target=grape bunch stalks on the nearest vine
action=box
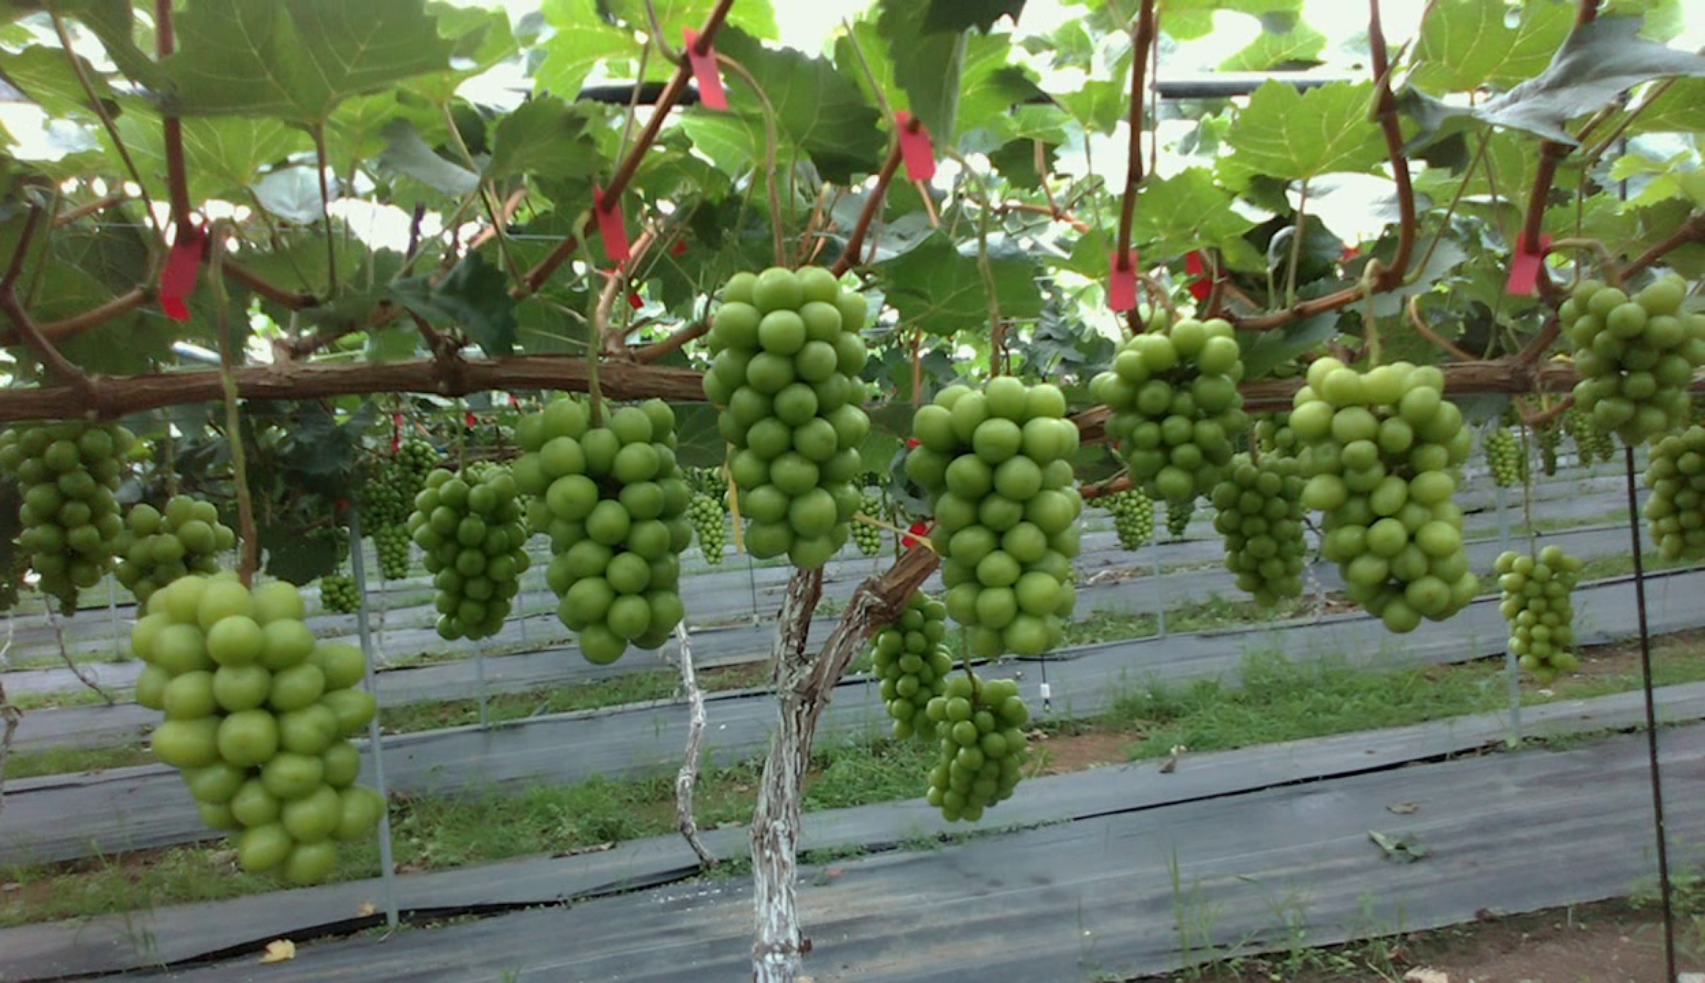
[1551,238,1622,285]
[1353,255,1380,365]
[574,210,604,426]
[951,149,999,374]
[208,217,257,587]
[1138,273,1172,333]
[724,57,786,268]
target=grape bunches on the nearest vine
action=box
[1556,274,1704,446]
[508,399,695,666]
[1290,358,1478,635]
[702,266,870,572]
[906,375,1082,658]
[131,572,385,883]
[1089,317,1249,502]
